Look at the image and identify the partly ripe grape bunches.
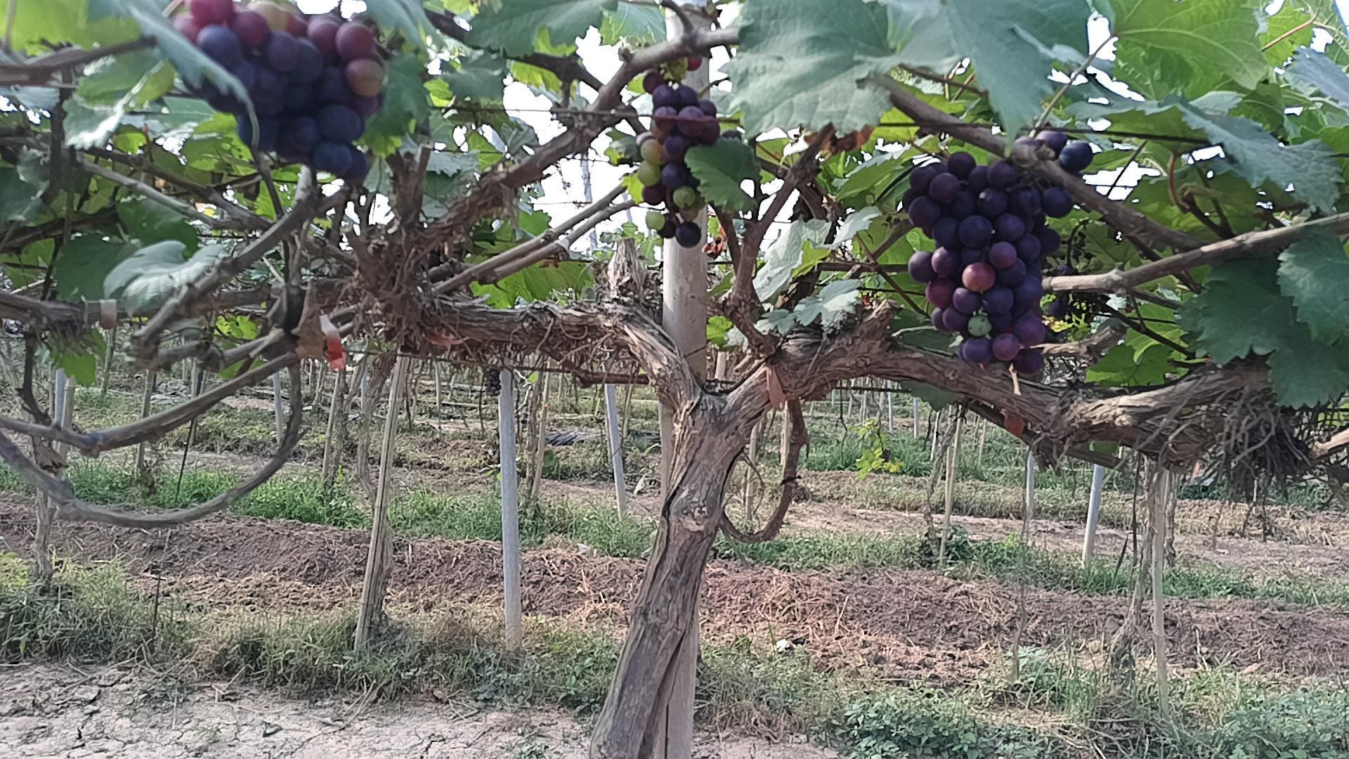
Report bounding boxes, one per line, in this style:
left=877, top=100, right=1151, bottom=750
left=903, top=129, right=1093, bottom=374
left=637, top=53, right=742, bottom=247
left=174, top=0, right=384, bottom=183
